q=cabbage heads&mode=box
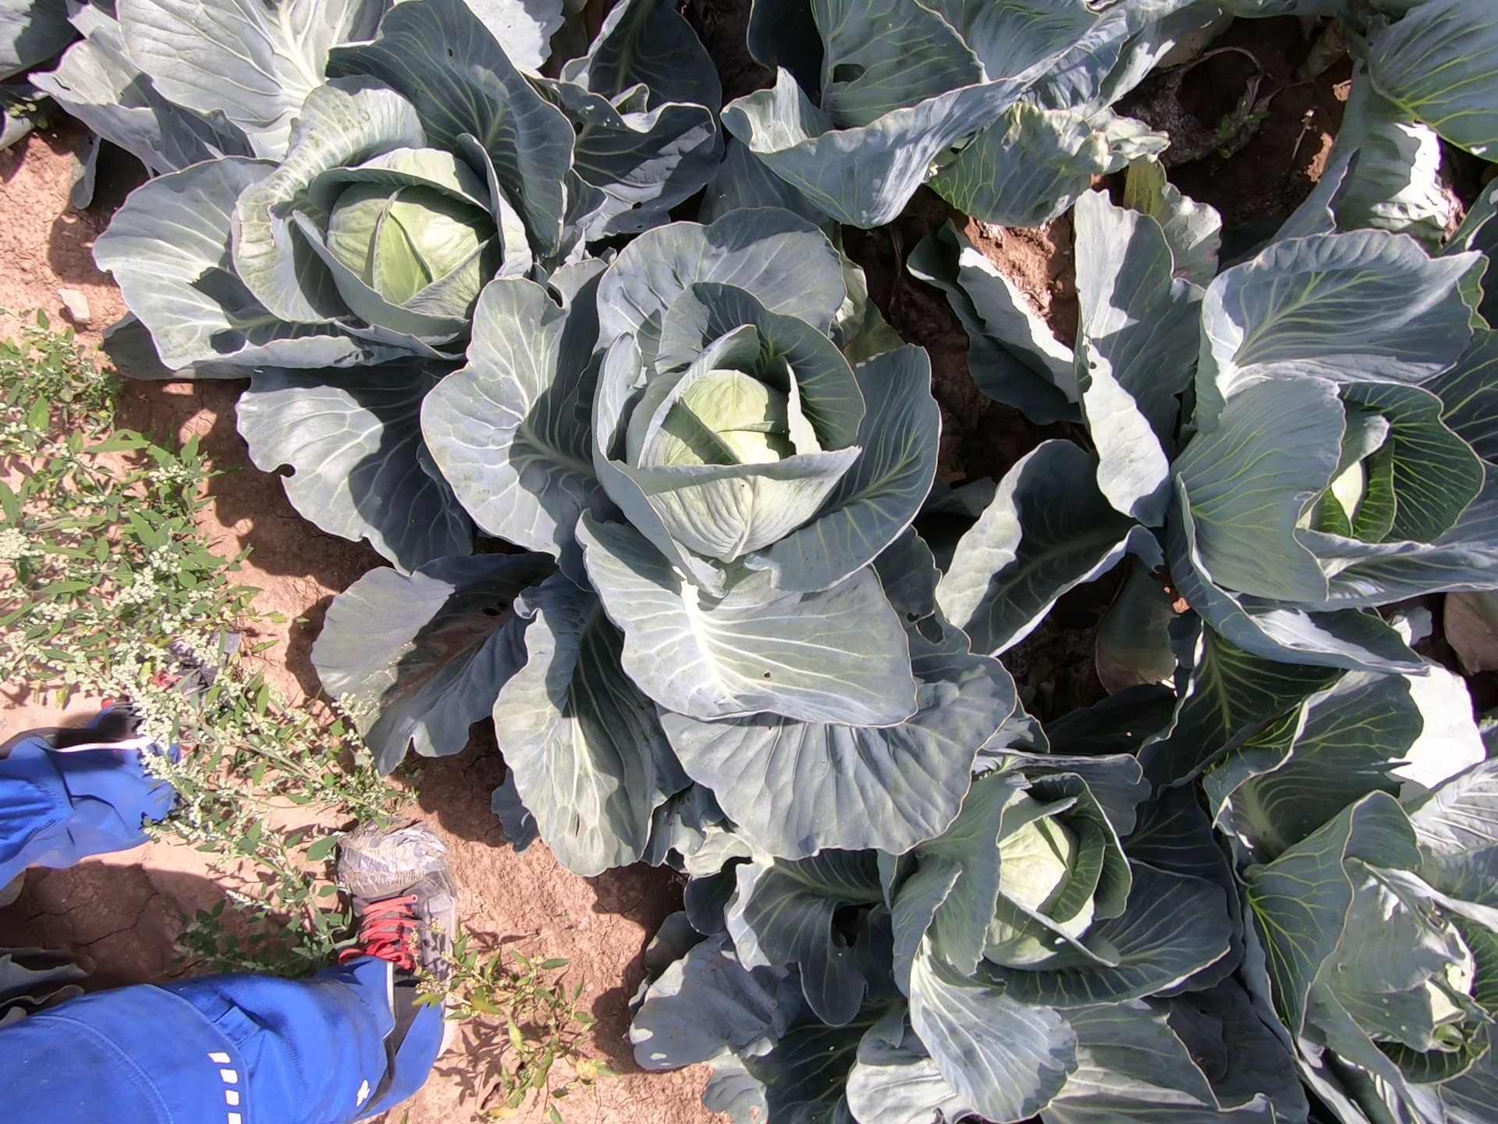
[1187,387,1381,595]
[327,149,512,342]
[948,794,1093,966]
[627,368,826,550]
[1283,867,1474,1048]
